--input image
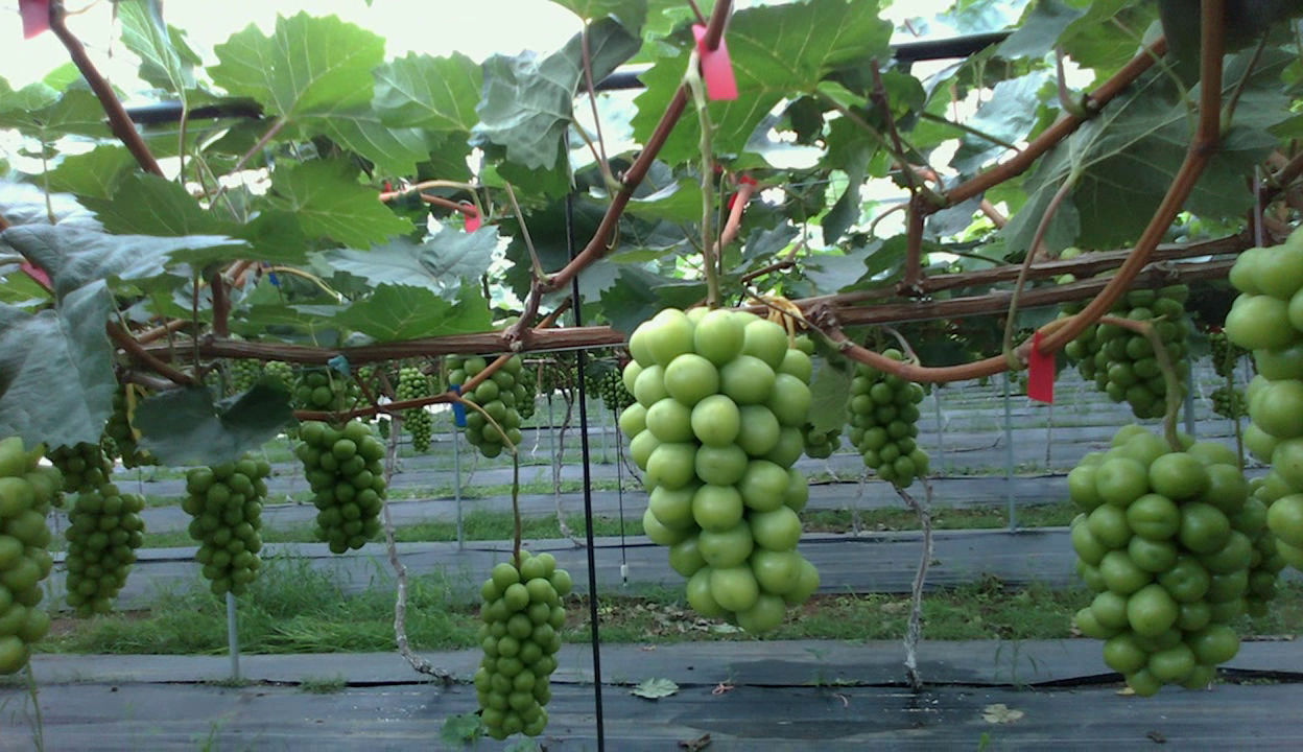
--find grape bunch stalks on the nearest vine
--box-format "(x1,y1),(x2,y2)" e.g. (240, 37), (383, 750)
(1097, 315), (1183, 451)
(681, 48), (720, 308)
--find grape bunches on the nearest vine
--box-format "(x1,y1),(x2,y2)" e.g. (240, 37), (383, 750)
(1065, 425), (1263, 696)
(619, 306), (823, 635)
